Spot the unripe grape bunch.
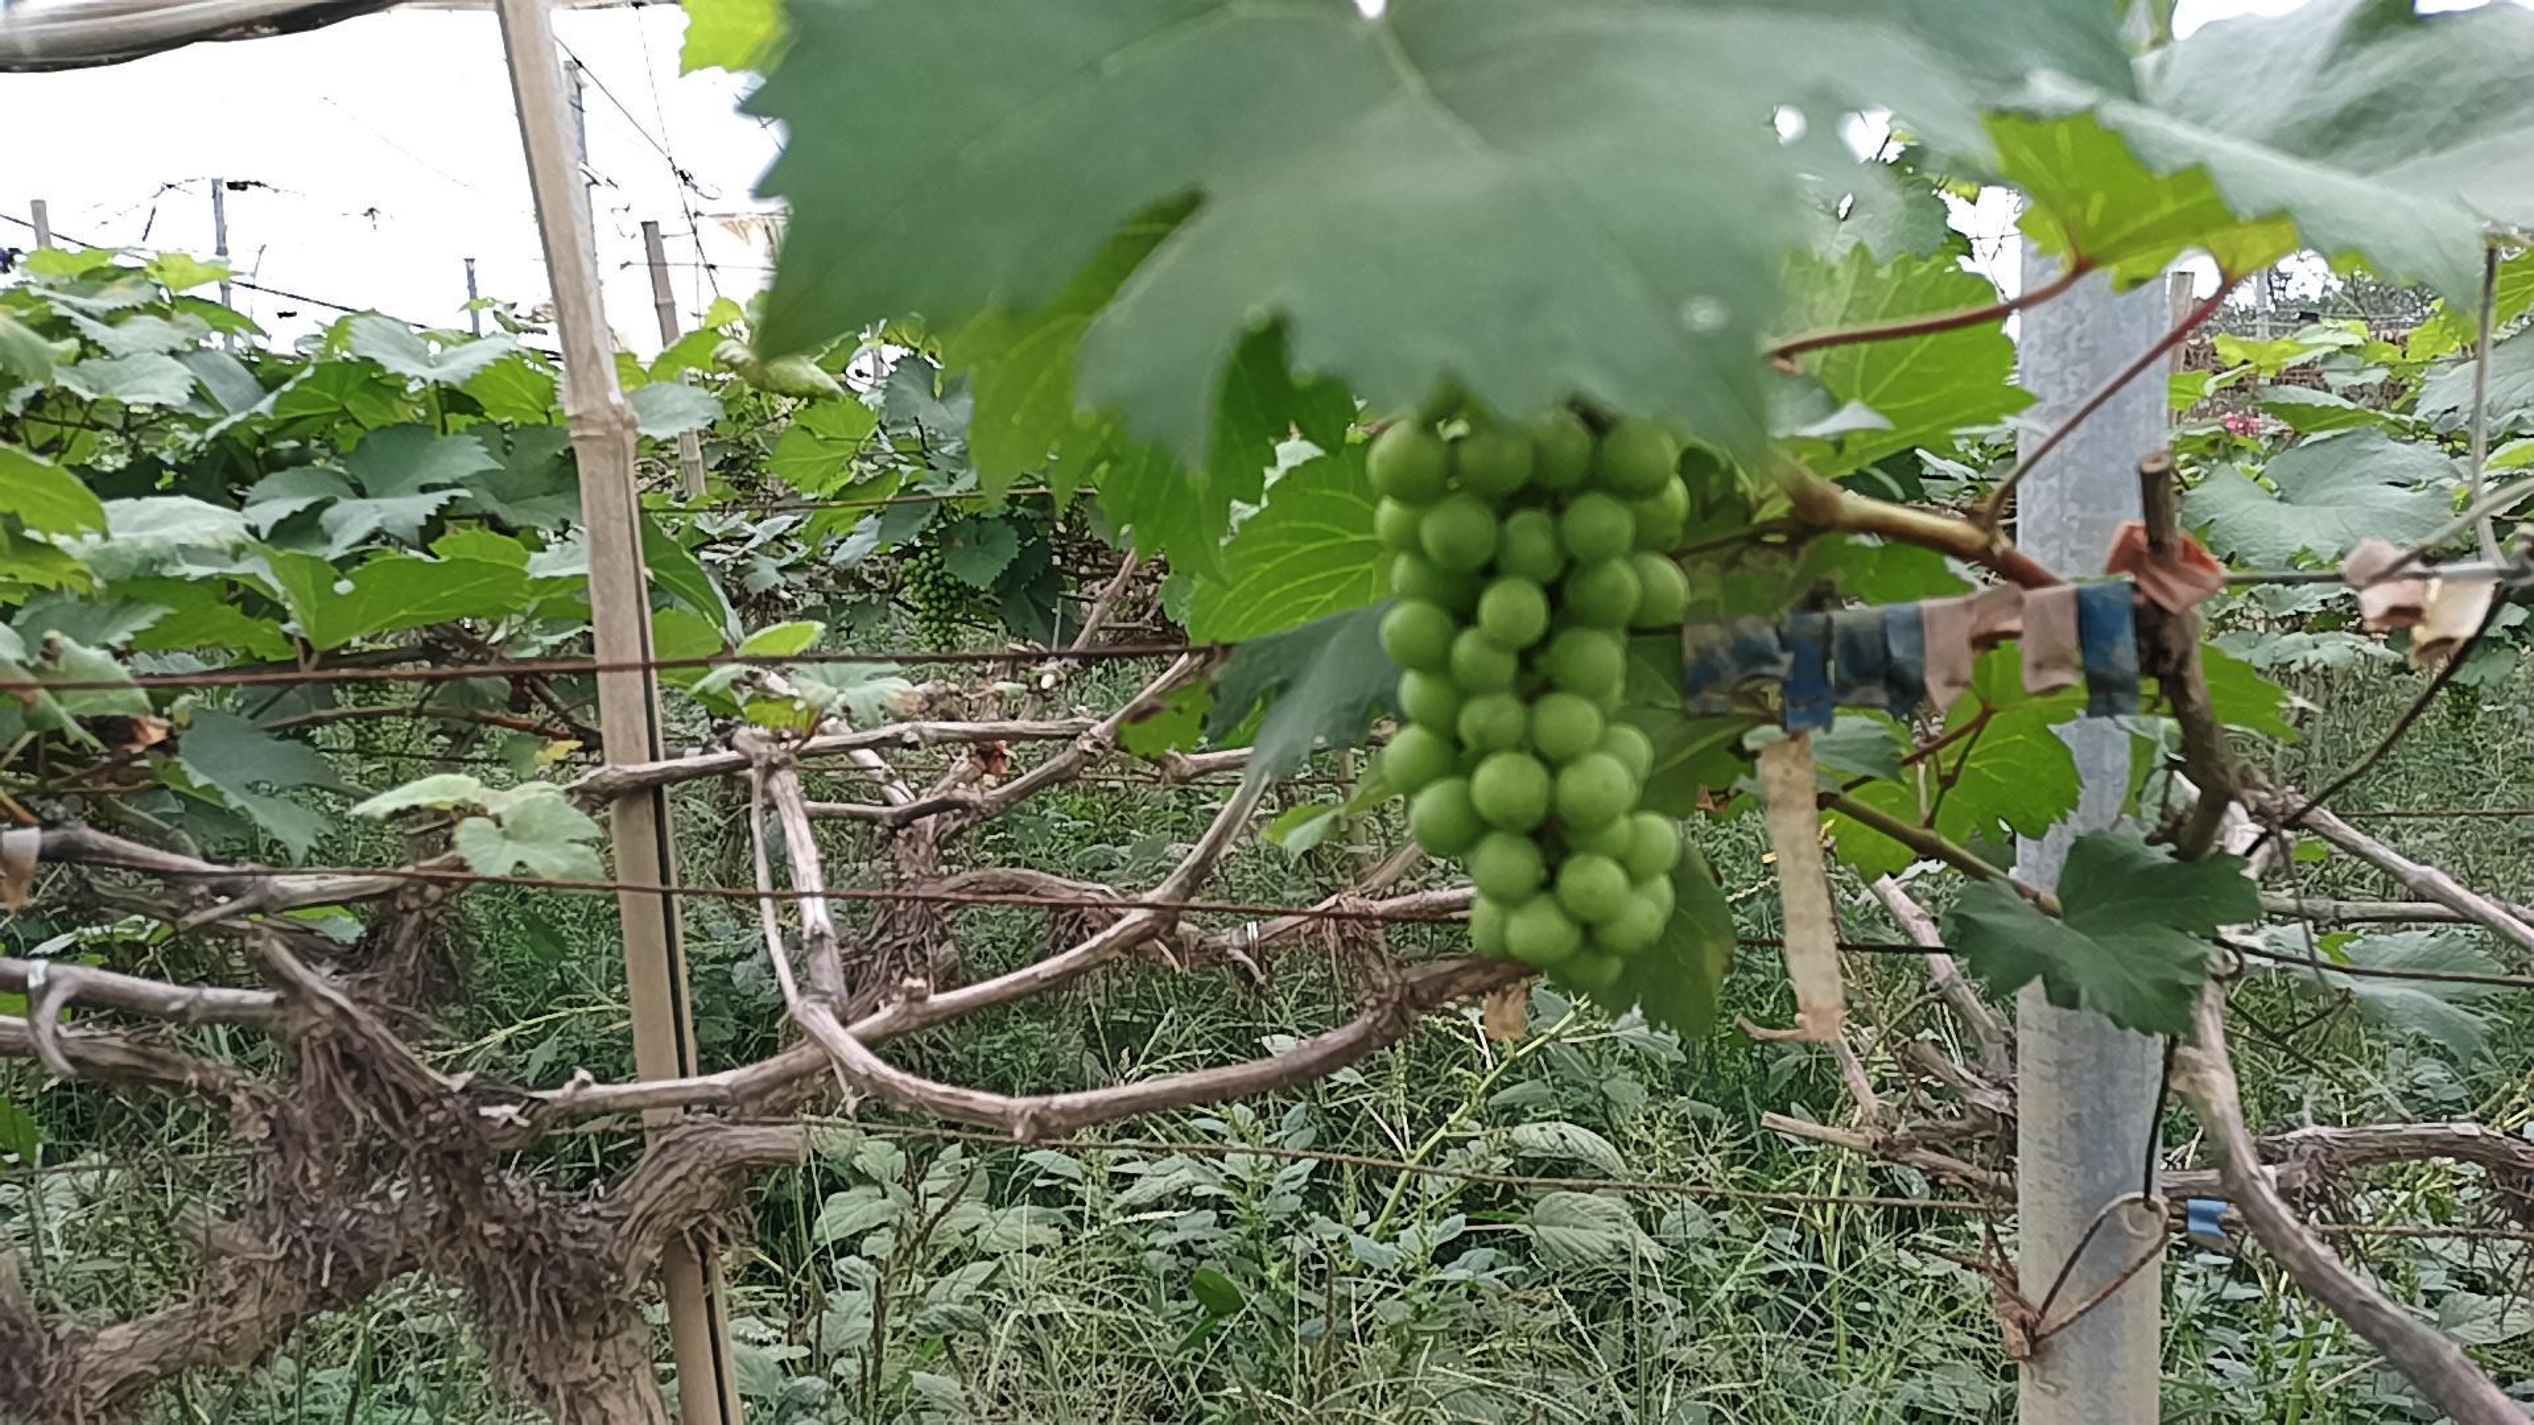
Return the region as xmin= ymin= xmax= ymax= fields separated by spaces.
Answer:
xmin=1369 ymin=414 xmax=1688 ymax=990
